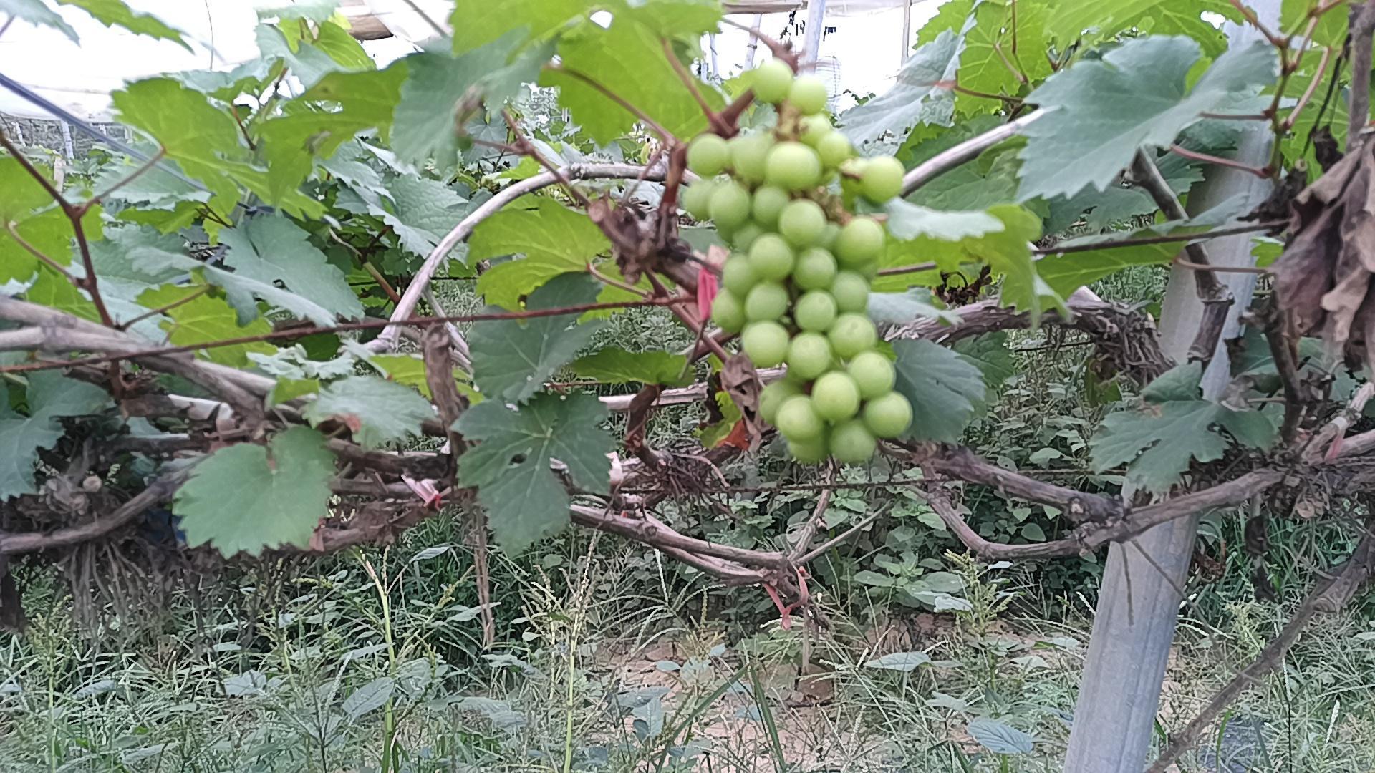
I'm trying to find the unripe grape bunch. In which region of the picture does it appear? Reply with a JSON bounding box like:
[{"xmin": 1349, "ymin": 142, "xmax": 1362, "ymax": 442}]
[{"xmin": 684, "ymin": 59, "xmax": 912, "ymax": 462}]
